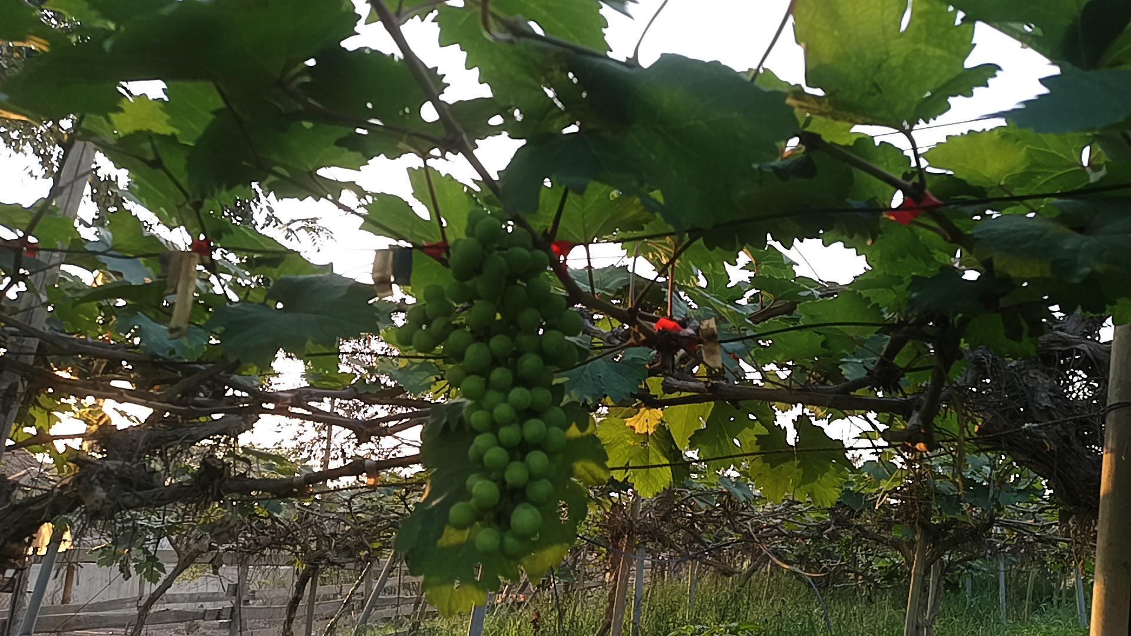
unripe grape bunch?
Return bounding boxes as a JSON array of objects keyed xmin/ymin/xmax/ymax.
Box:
[{"xmin": 393, "ymin": 210, "xmax": 583, "ymax": 561}]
